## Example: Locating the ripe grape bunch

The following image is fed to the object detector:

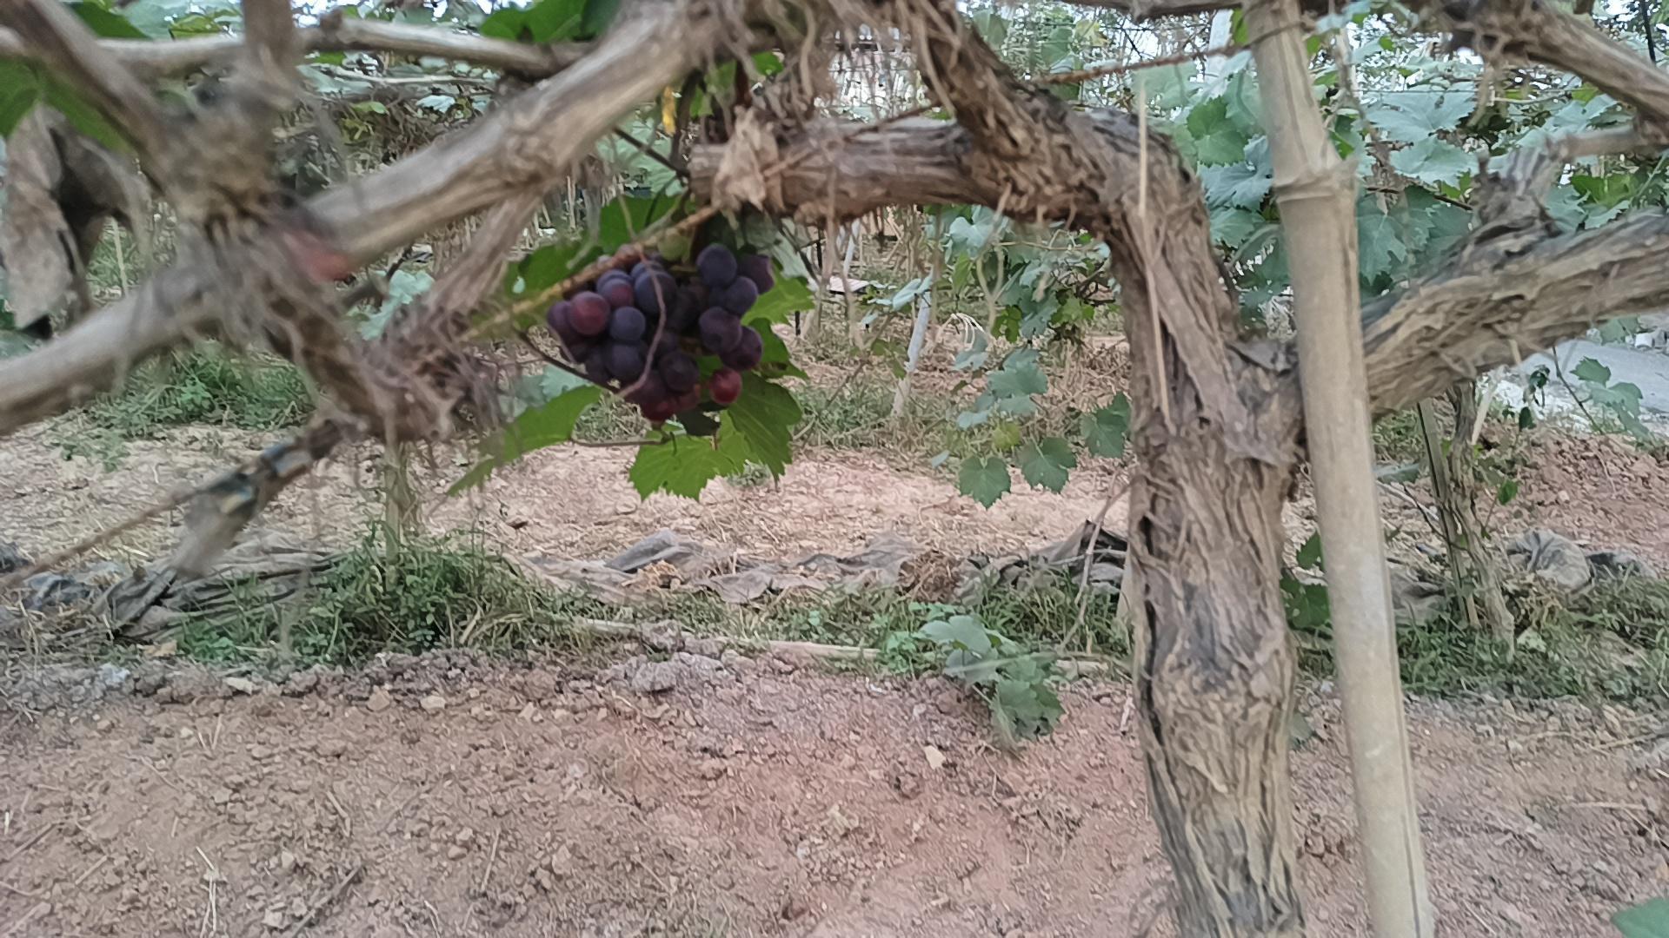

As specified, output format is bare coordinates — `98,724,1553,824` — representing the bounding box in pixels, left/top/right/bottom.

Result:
546,243,775,434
